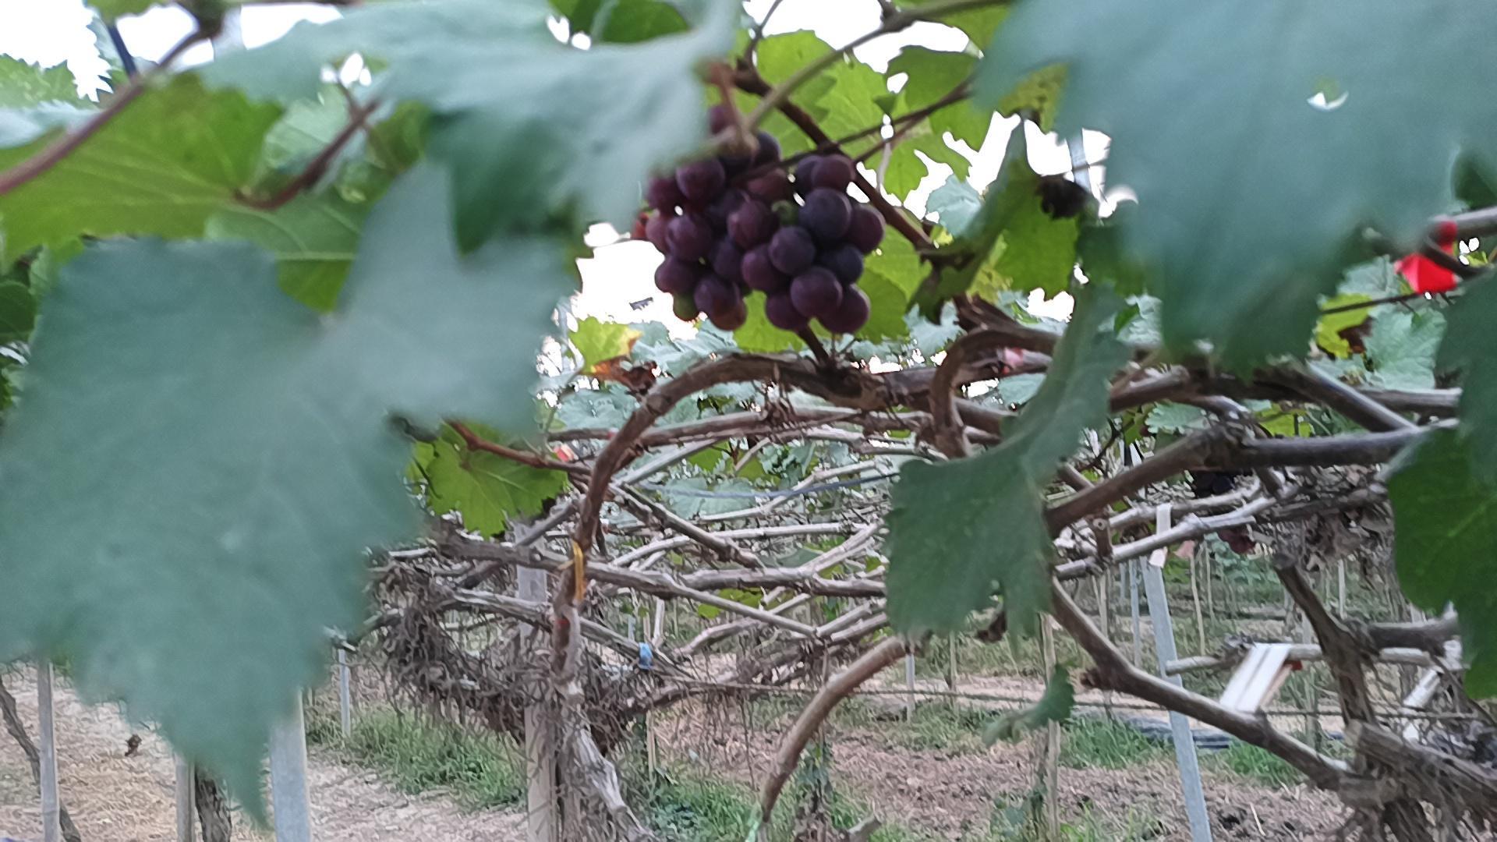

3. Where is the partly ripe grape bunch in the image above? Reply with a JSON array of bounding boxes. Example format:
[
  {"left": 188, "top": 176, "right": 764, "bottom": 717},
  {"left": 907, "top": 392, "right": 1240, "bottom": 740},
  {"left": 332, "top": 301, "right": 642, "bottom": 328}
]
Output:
[{"left": 631, "top": 102, "right": 884, "bottom": 335}]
